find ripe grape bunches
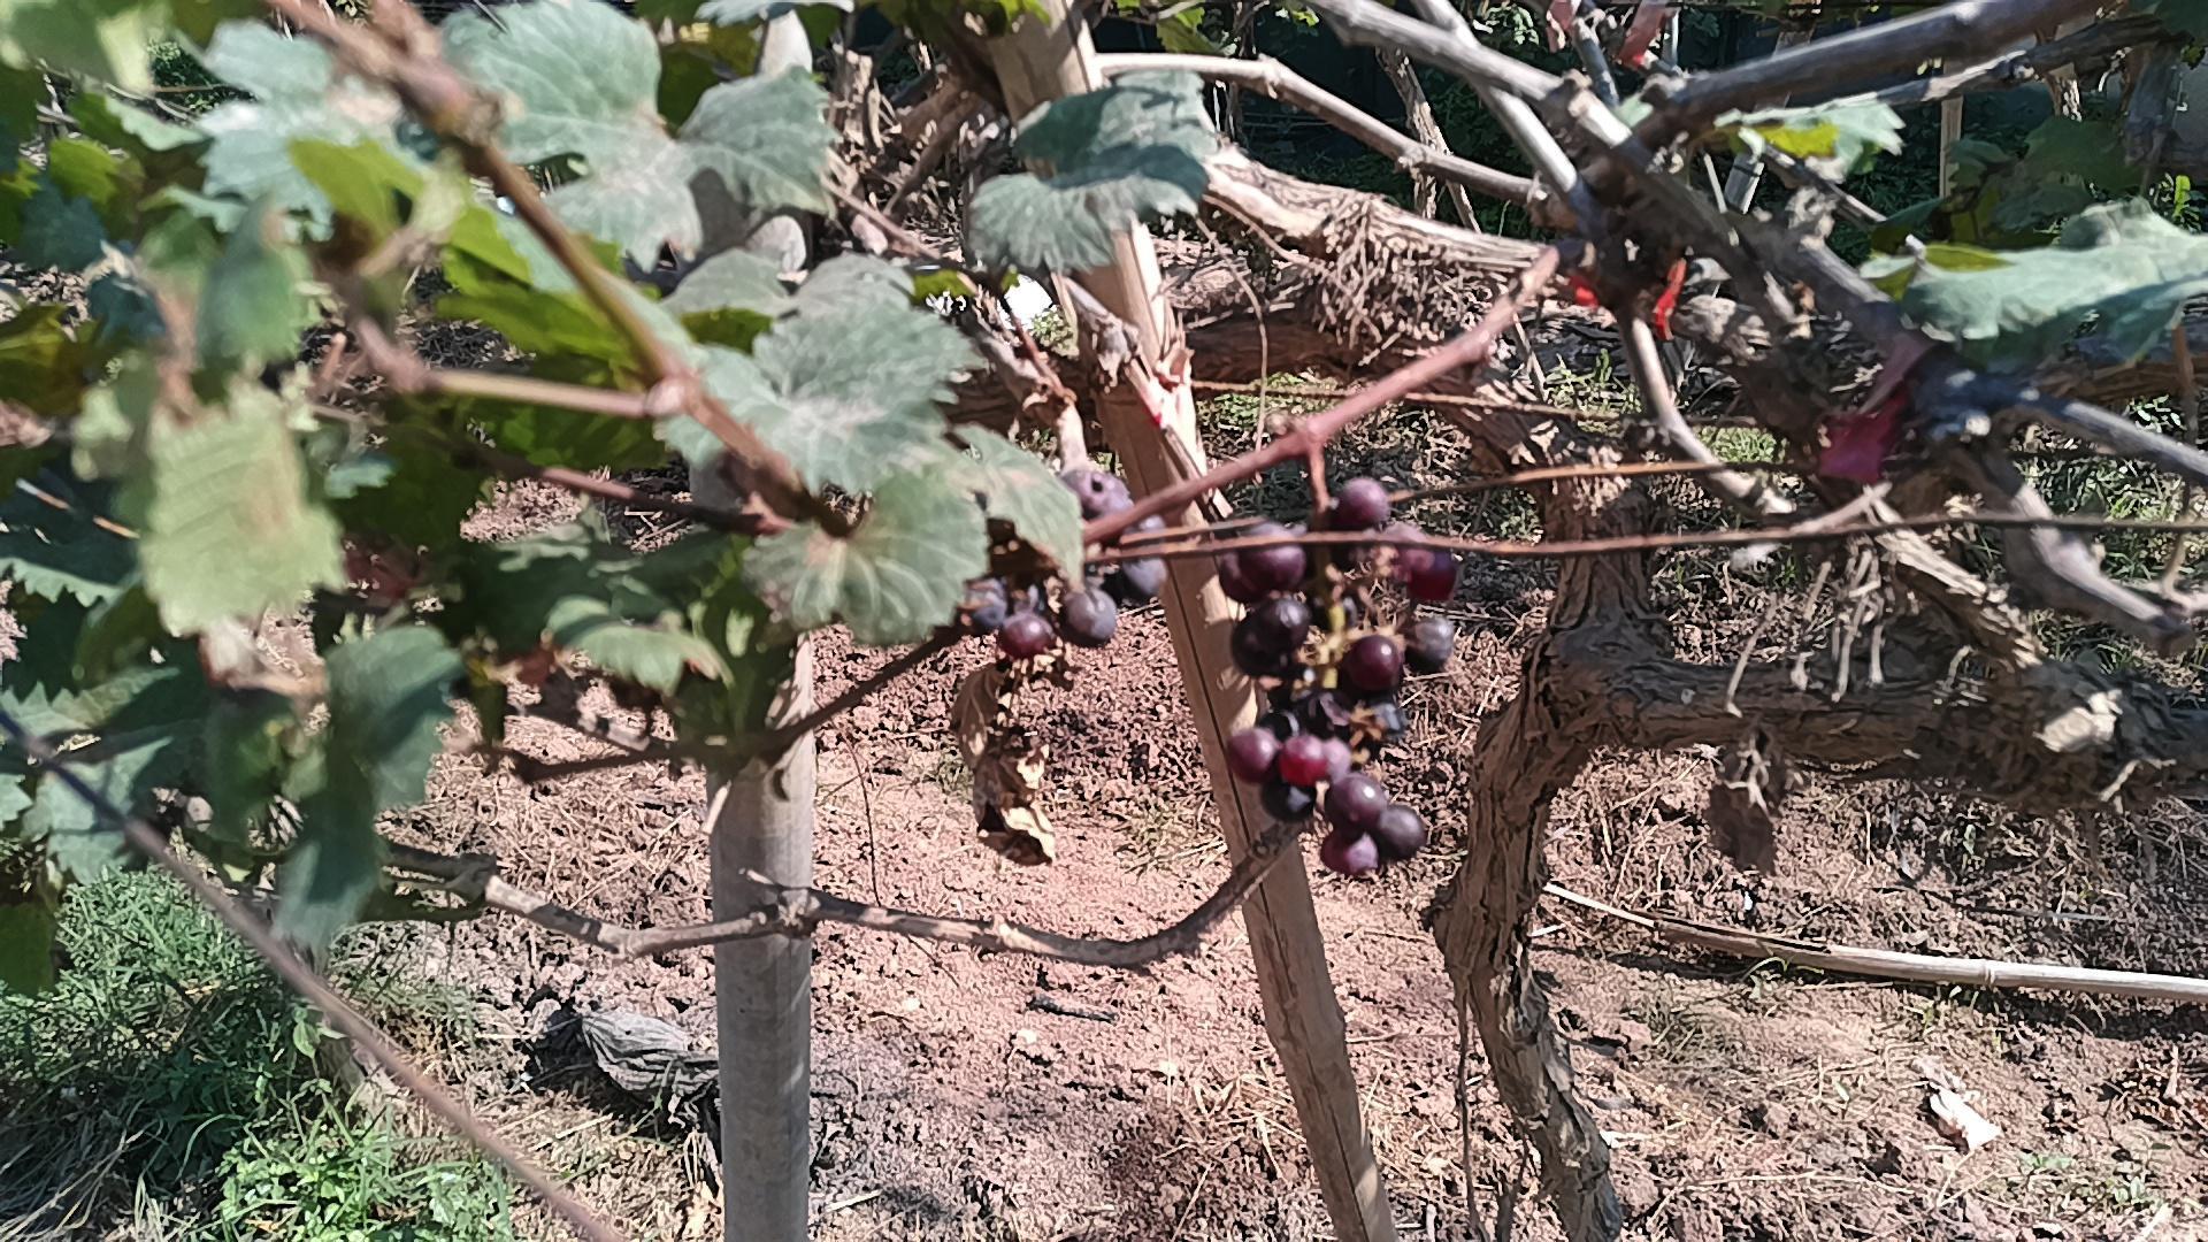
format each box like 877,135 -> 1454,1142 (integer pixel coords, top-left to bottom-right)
960,466 -> 1165,674
1217,478 -> 1460,875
